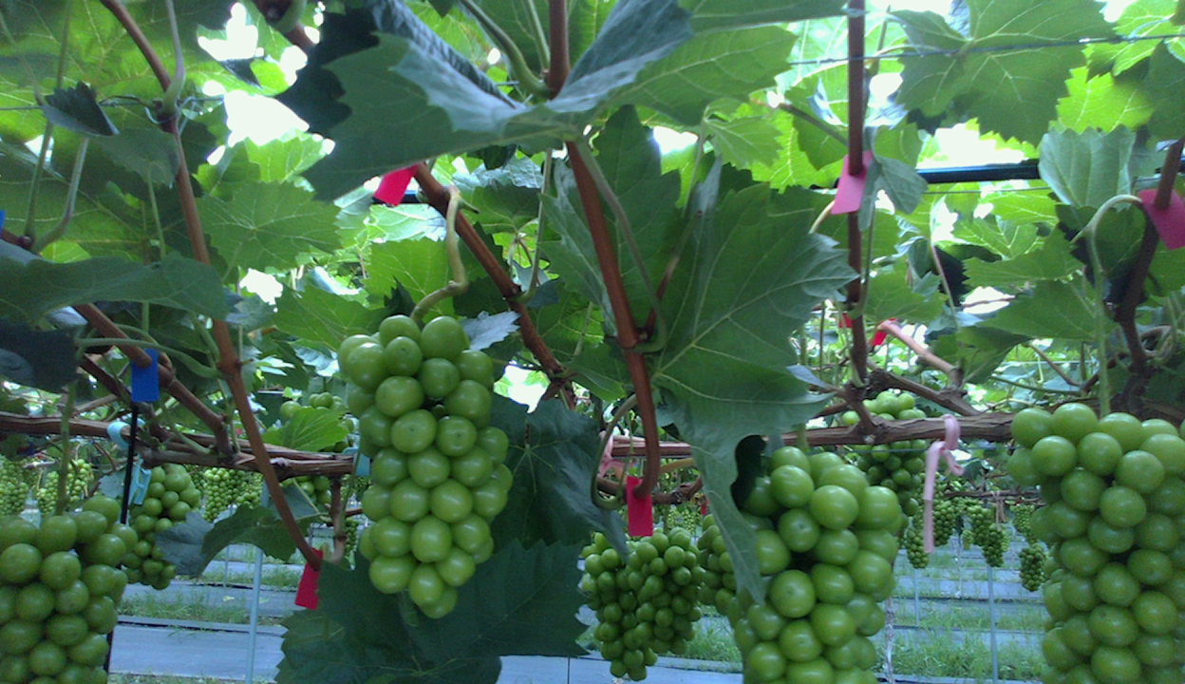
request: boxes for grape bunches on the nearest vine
[0,497,136,683]
[1006,404,1184,683]
[336,315,513,617]
[727,445,902,683]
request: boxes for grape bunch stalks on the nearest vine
[1082,194,1138,420]
[410,168,470,332]
[55,383,77,516]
